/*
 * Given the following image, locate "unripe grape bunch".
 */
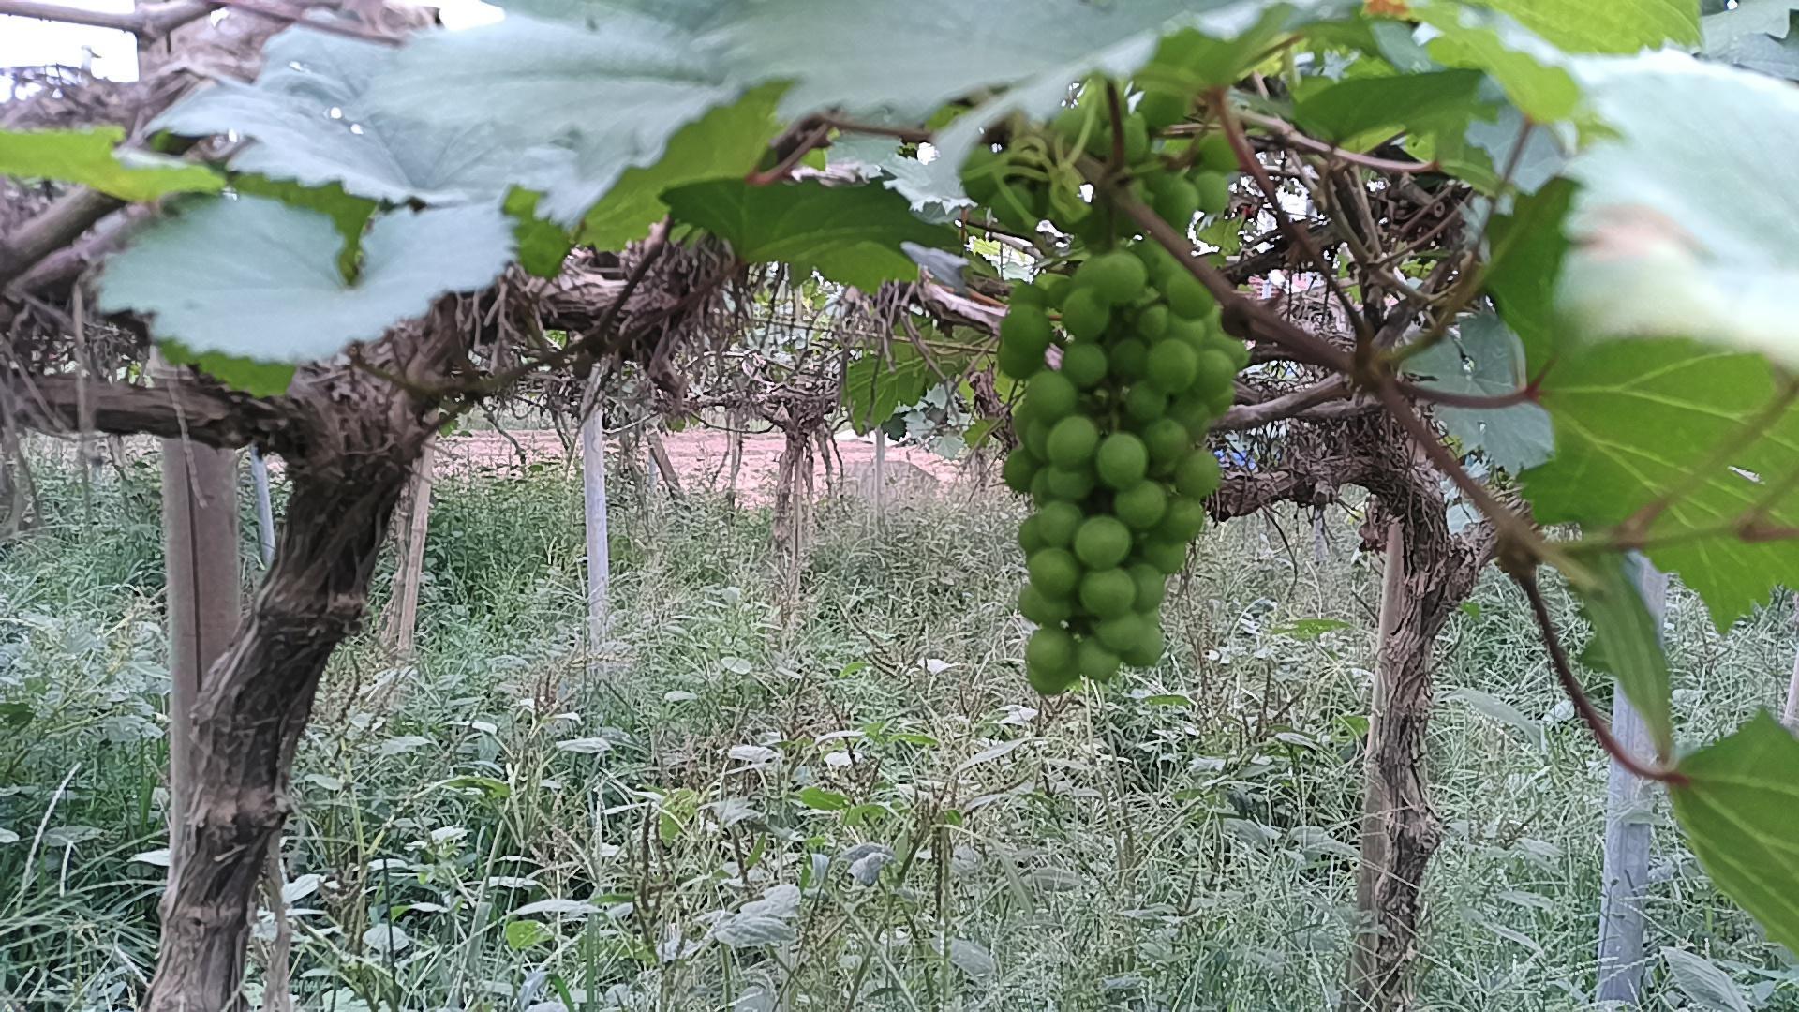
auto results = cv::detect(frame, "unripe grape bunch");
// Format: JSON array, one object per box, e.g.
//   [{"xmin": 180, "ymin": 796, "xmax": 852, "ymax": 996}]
[{"xmin": 962, "ymin": 79, "xmax": 1248, "ymax": 693}]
